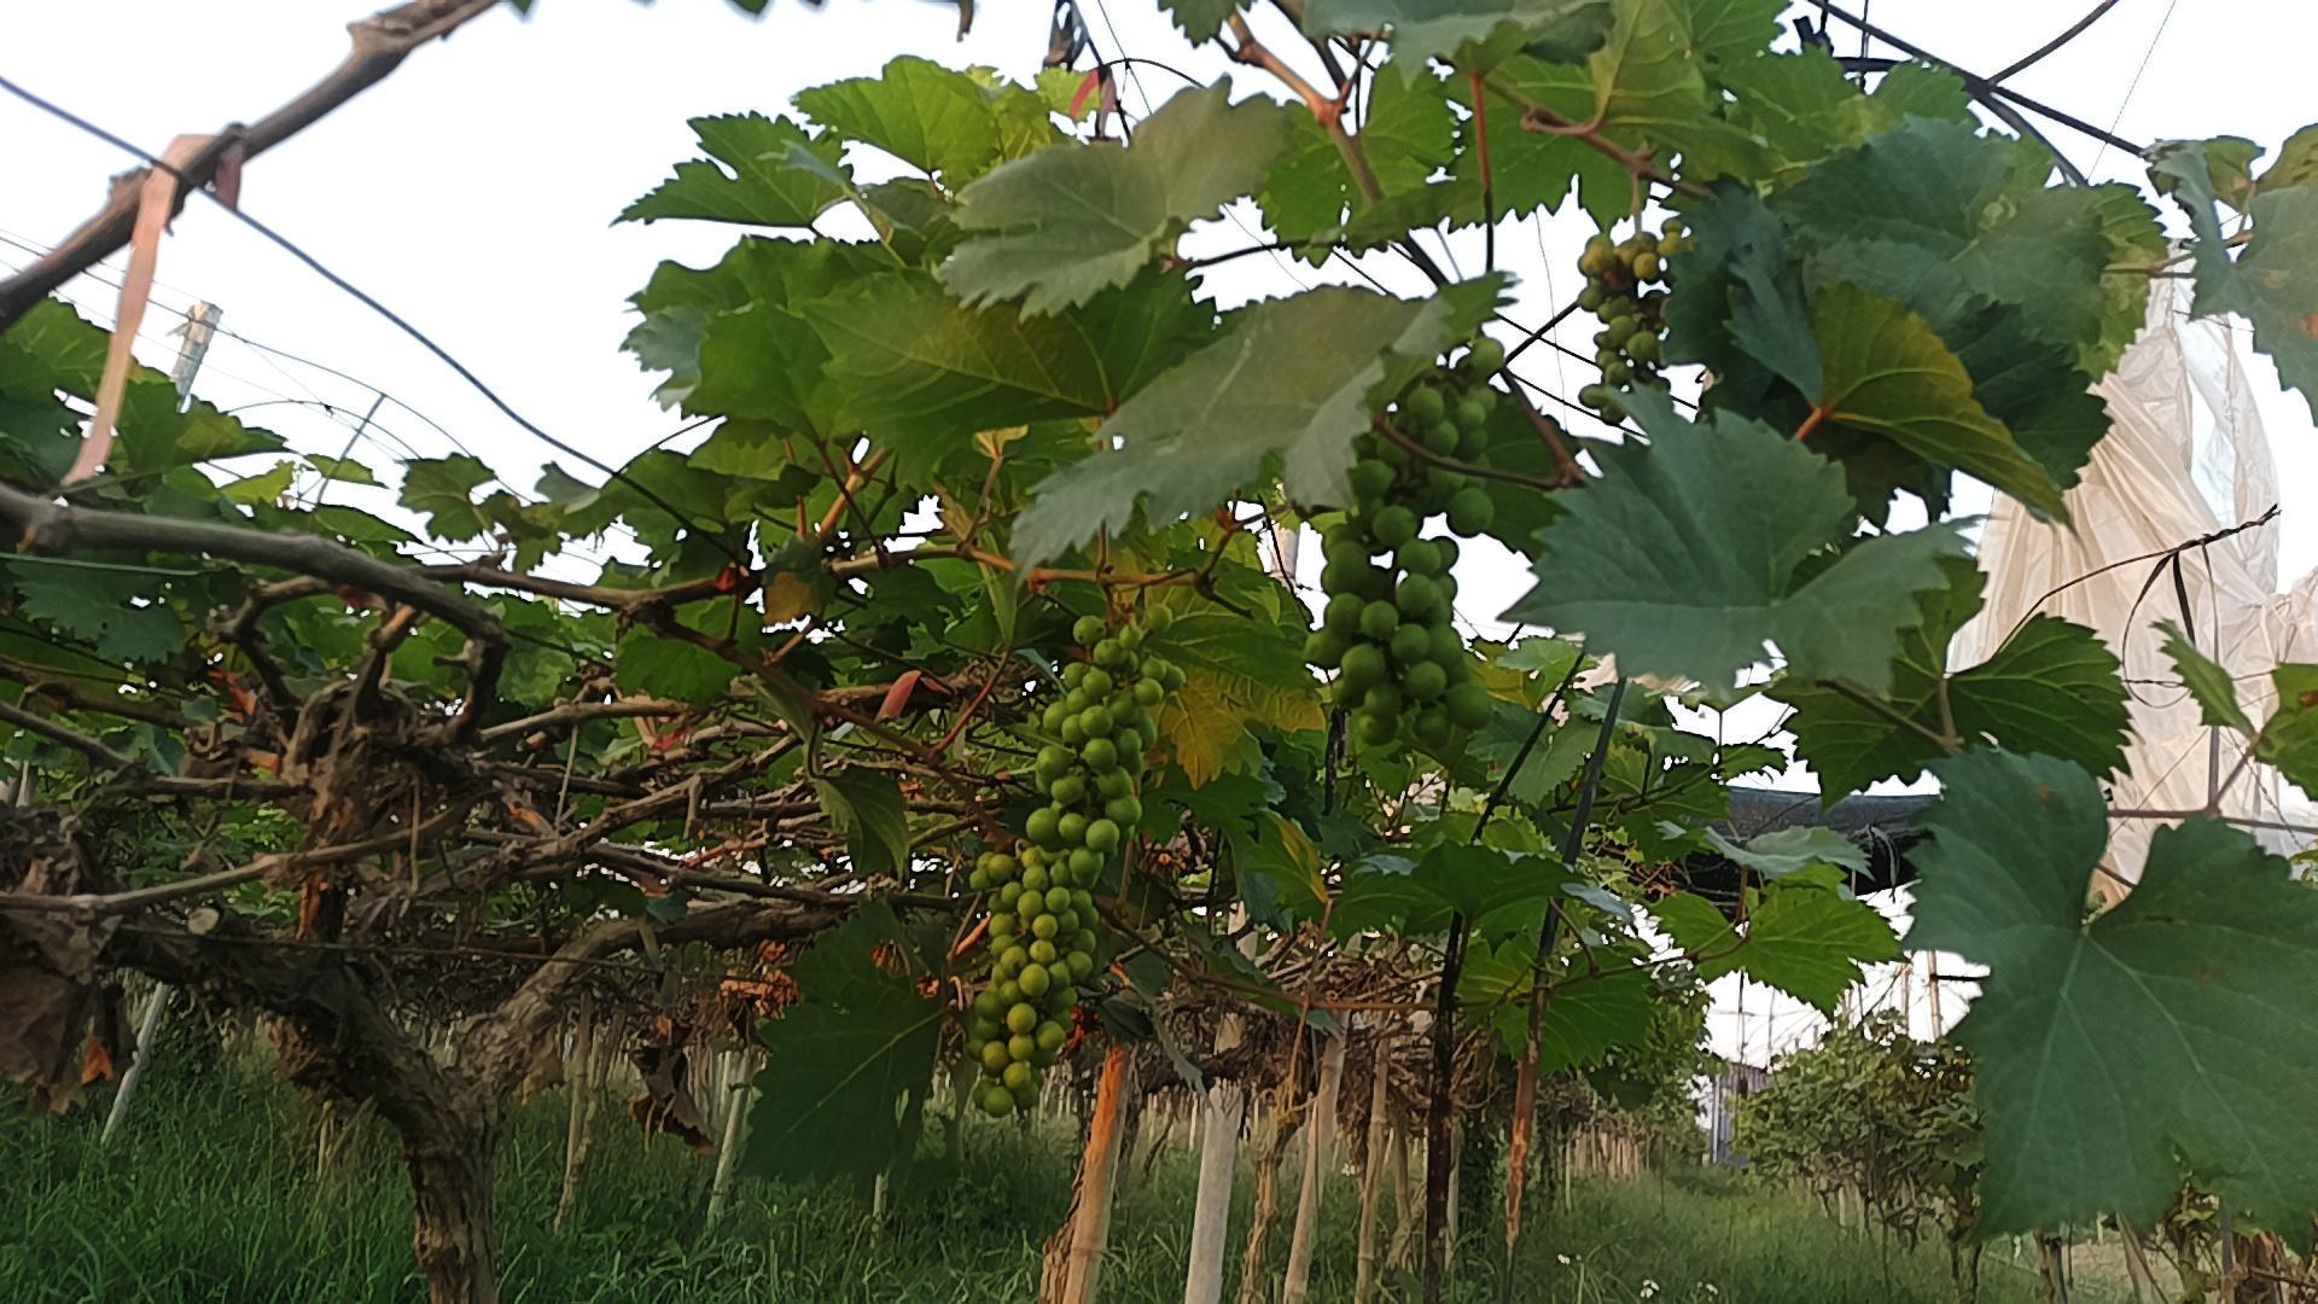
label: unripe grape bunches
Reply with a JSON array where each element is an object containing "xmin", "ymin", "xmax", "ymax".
[
  {"xmin": 1574, "ymin": 220, "xmax": 1693, "ymax": 425},
  {"xmin": 967, "ymin": 618, "xmax": 1184, "ymax": 1116},
  {"xmin": 1307, "ymin": 359, "xmax": 1495, "ymax": 751}
]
